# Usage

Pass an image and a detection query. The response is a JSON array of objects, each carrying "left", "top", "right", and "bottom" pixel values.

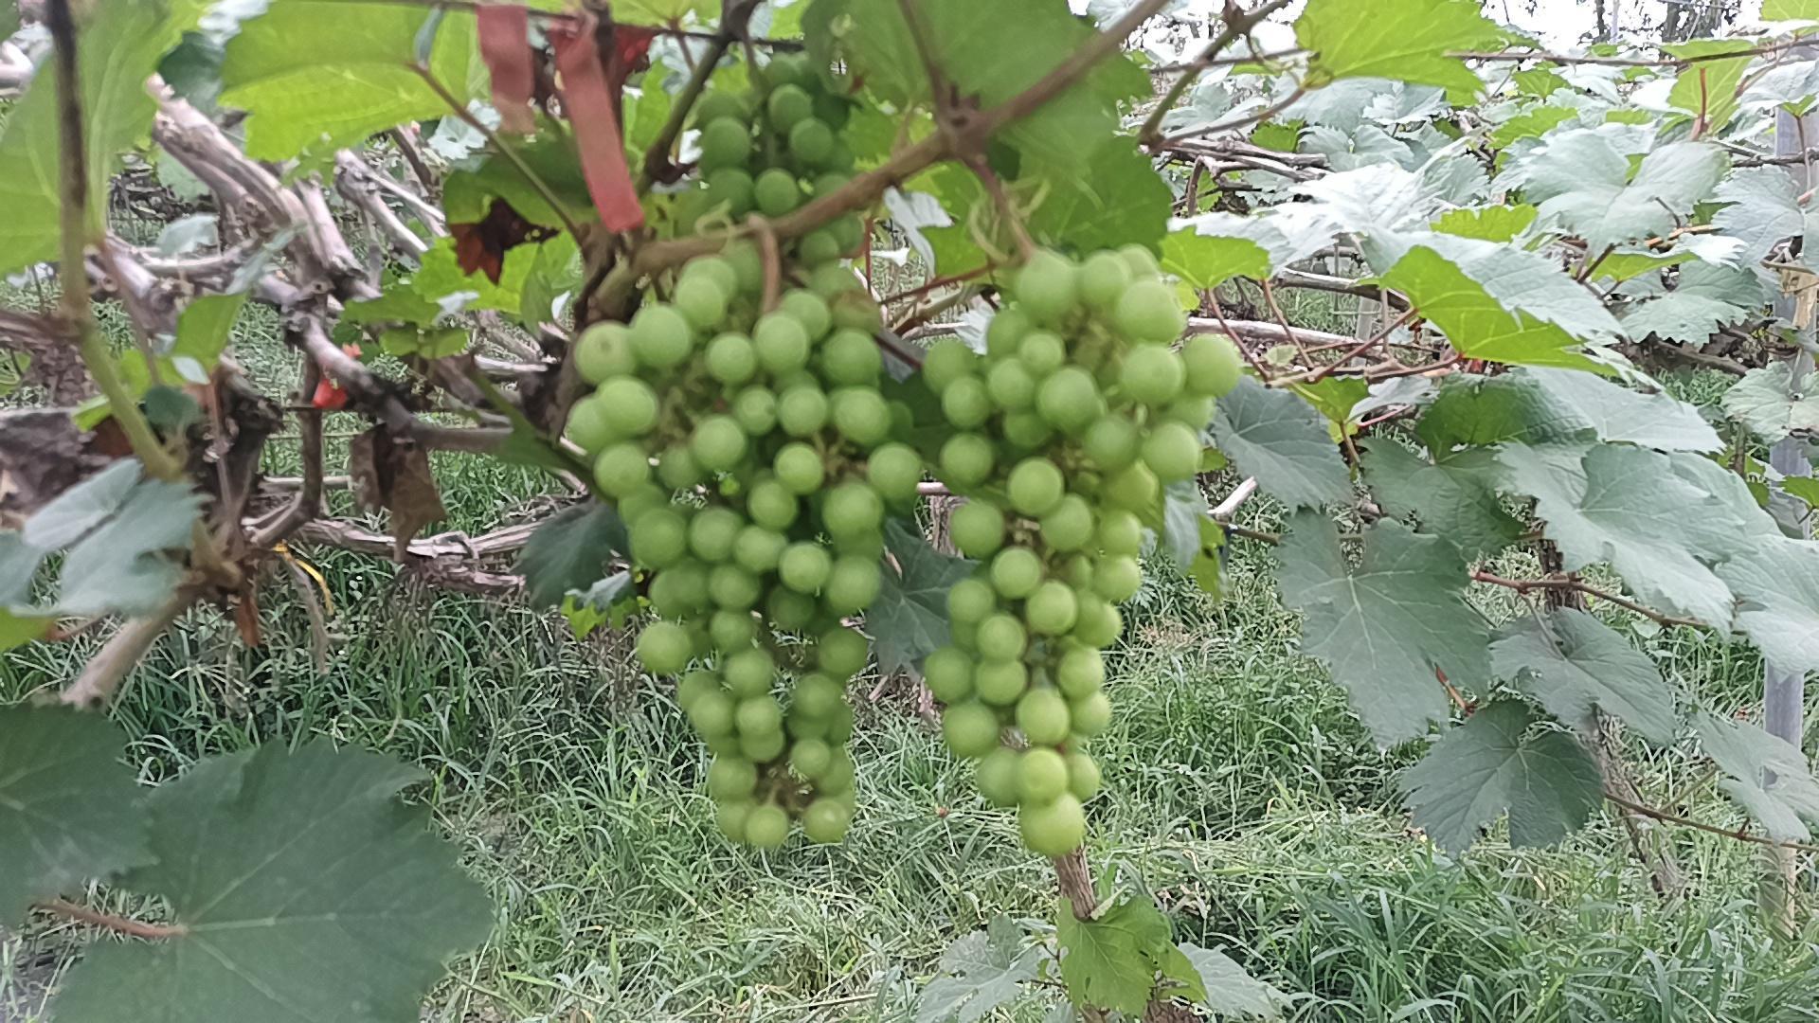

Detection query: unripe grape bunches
[
  {"left": 922, "top": 243, "right": 1245, "bottom": 856},
  {"left": 696, "top": 50, "right": 862, "bottom": 269},
  {"left": 566, "top": 240, "right": 920, "bottom": 849}
]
